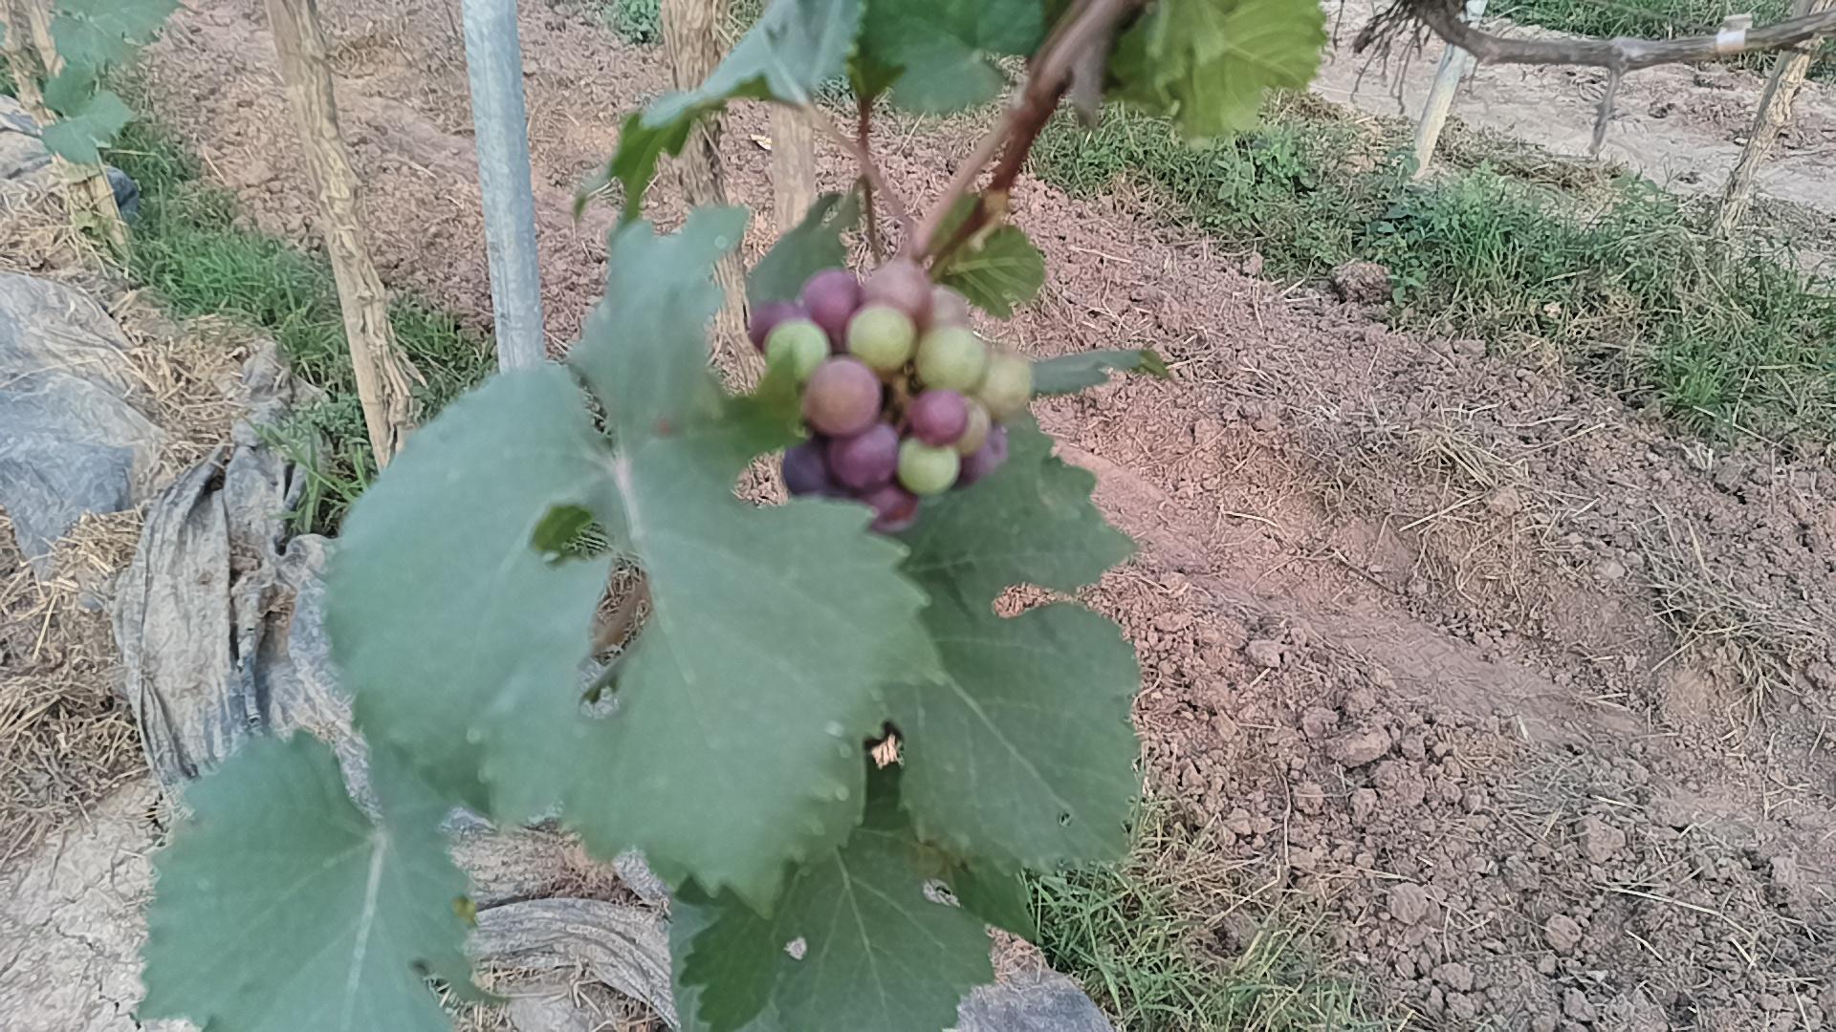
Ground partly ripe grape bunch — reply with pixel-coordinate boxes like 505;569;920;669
749;260;1035;530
